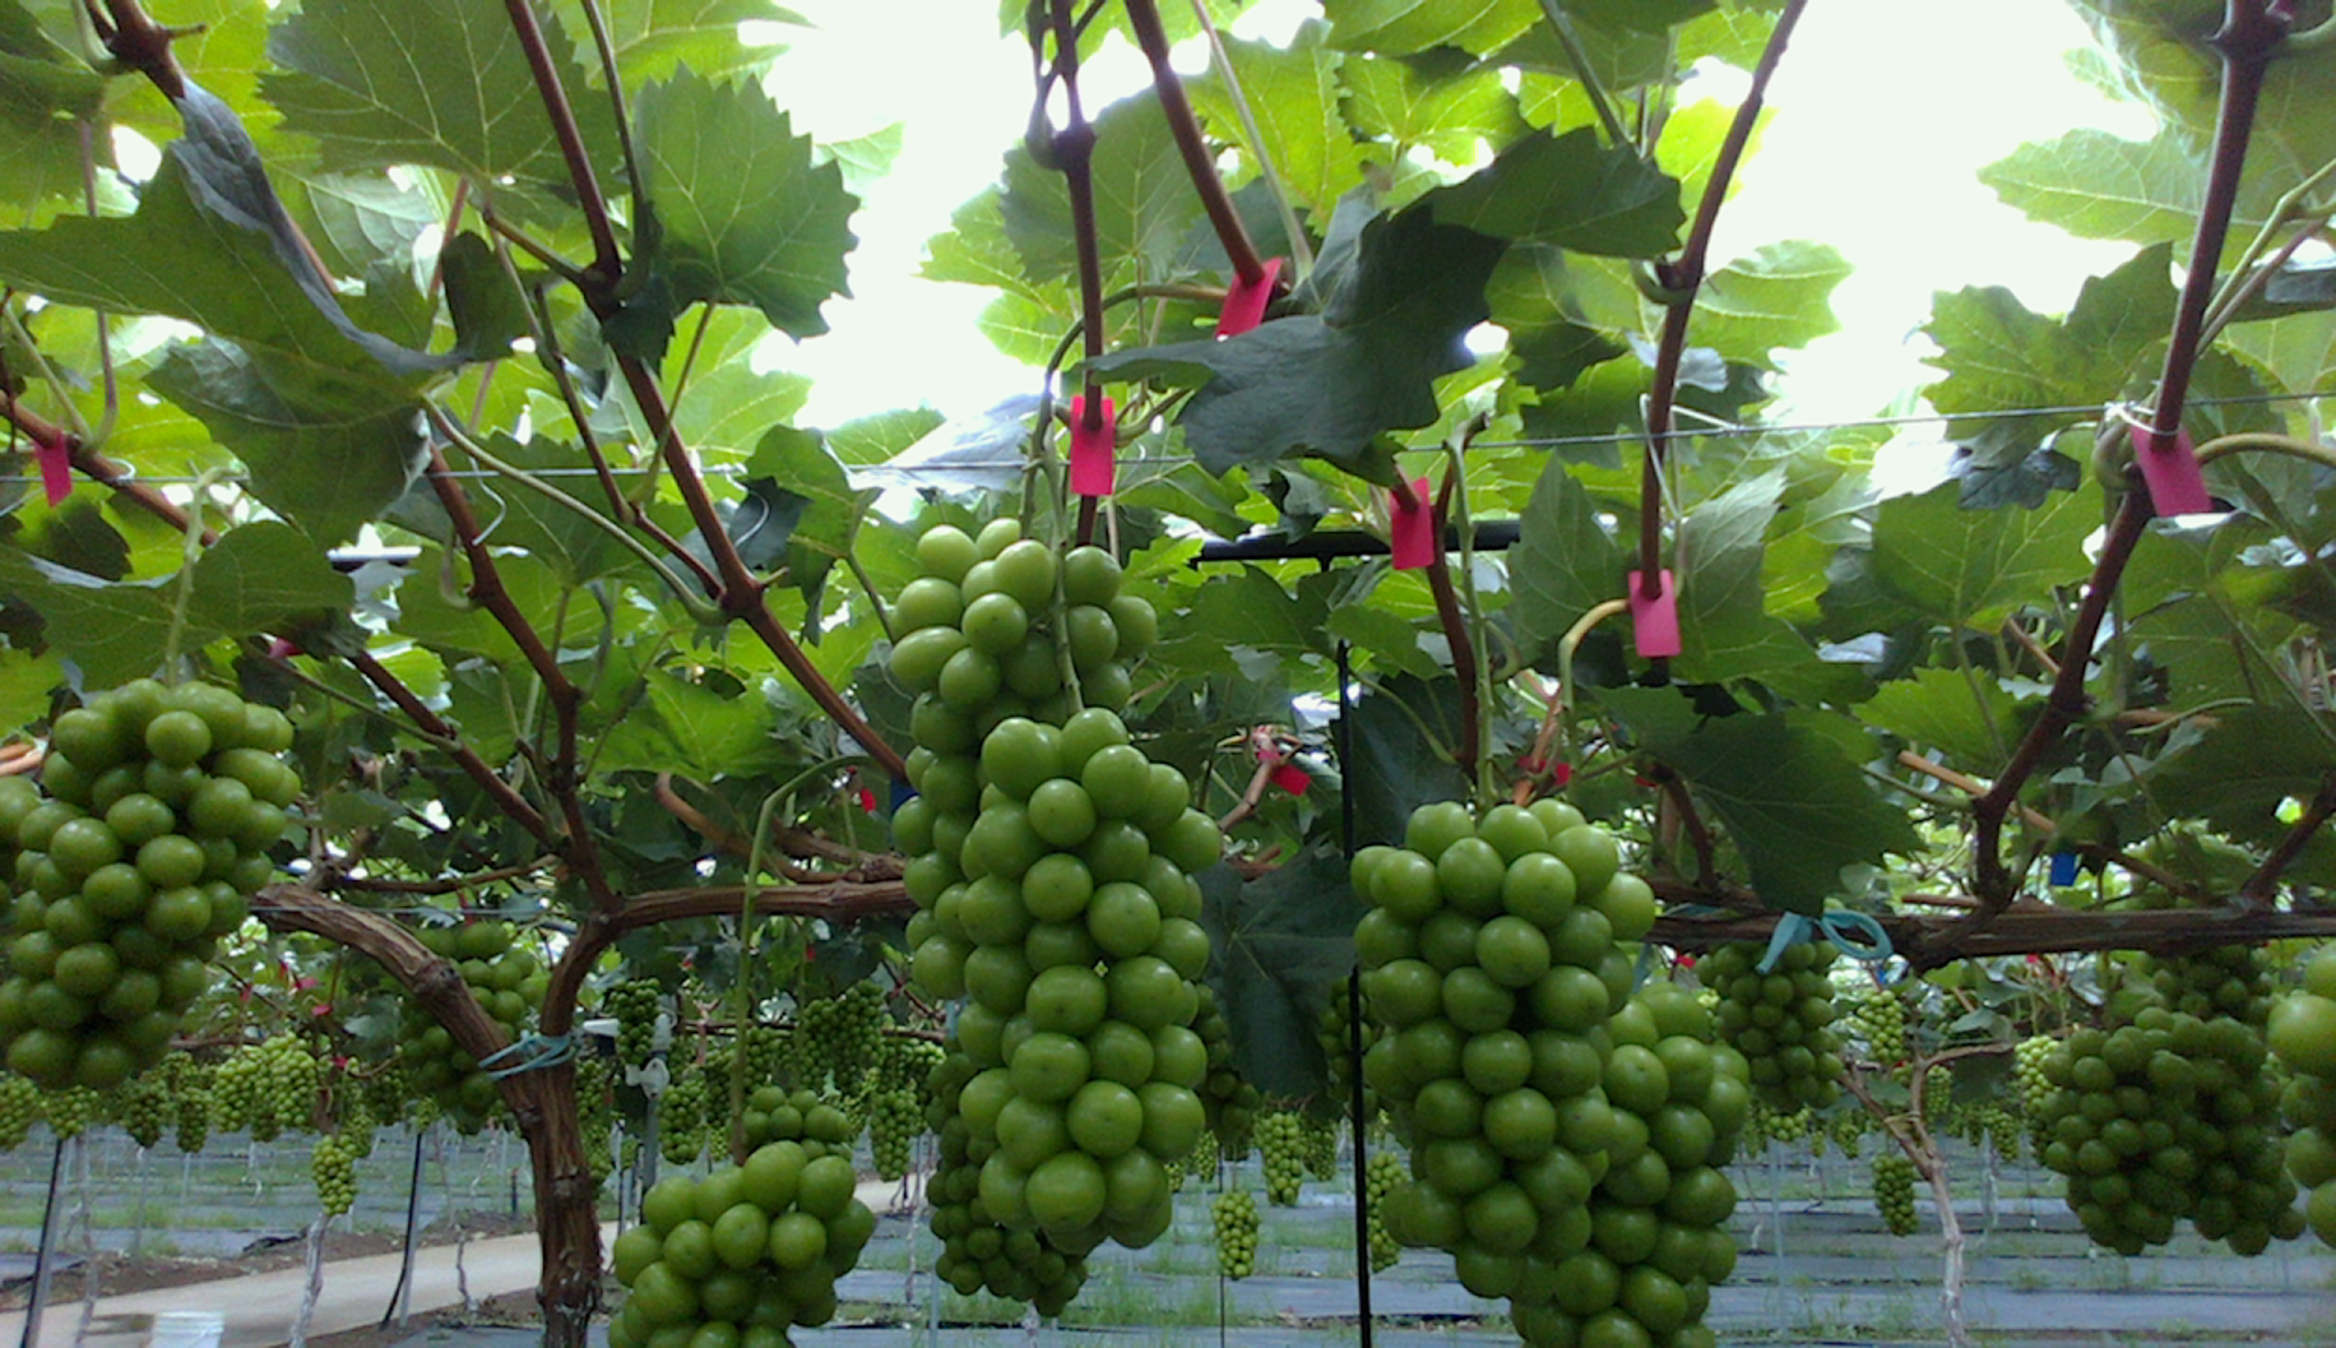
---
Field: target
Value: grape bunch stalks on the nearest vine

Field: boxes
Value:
[730,753,883,1165]
[1557,597,1630,807]
[1039,399,1084,721]
[165,464,251,691]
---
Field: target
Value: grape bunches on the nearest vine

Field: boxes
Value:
[955,708,1222,1254]
[2,678,299,1092]
[1351,796,1655,1307]
[887,517,1157,1000]
[1509,985,1748,1346]
[606,1140,878,1346]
